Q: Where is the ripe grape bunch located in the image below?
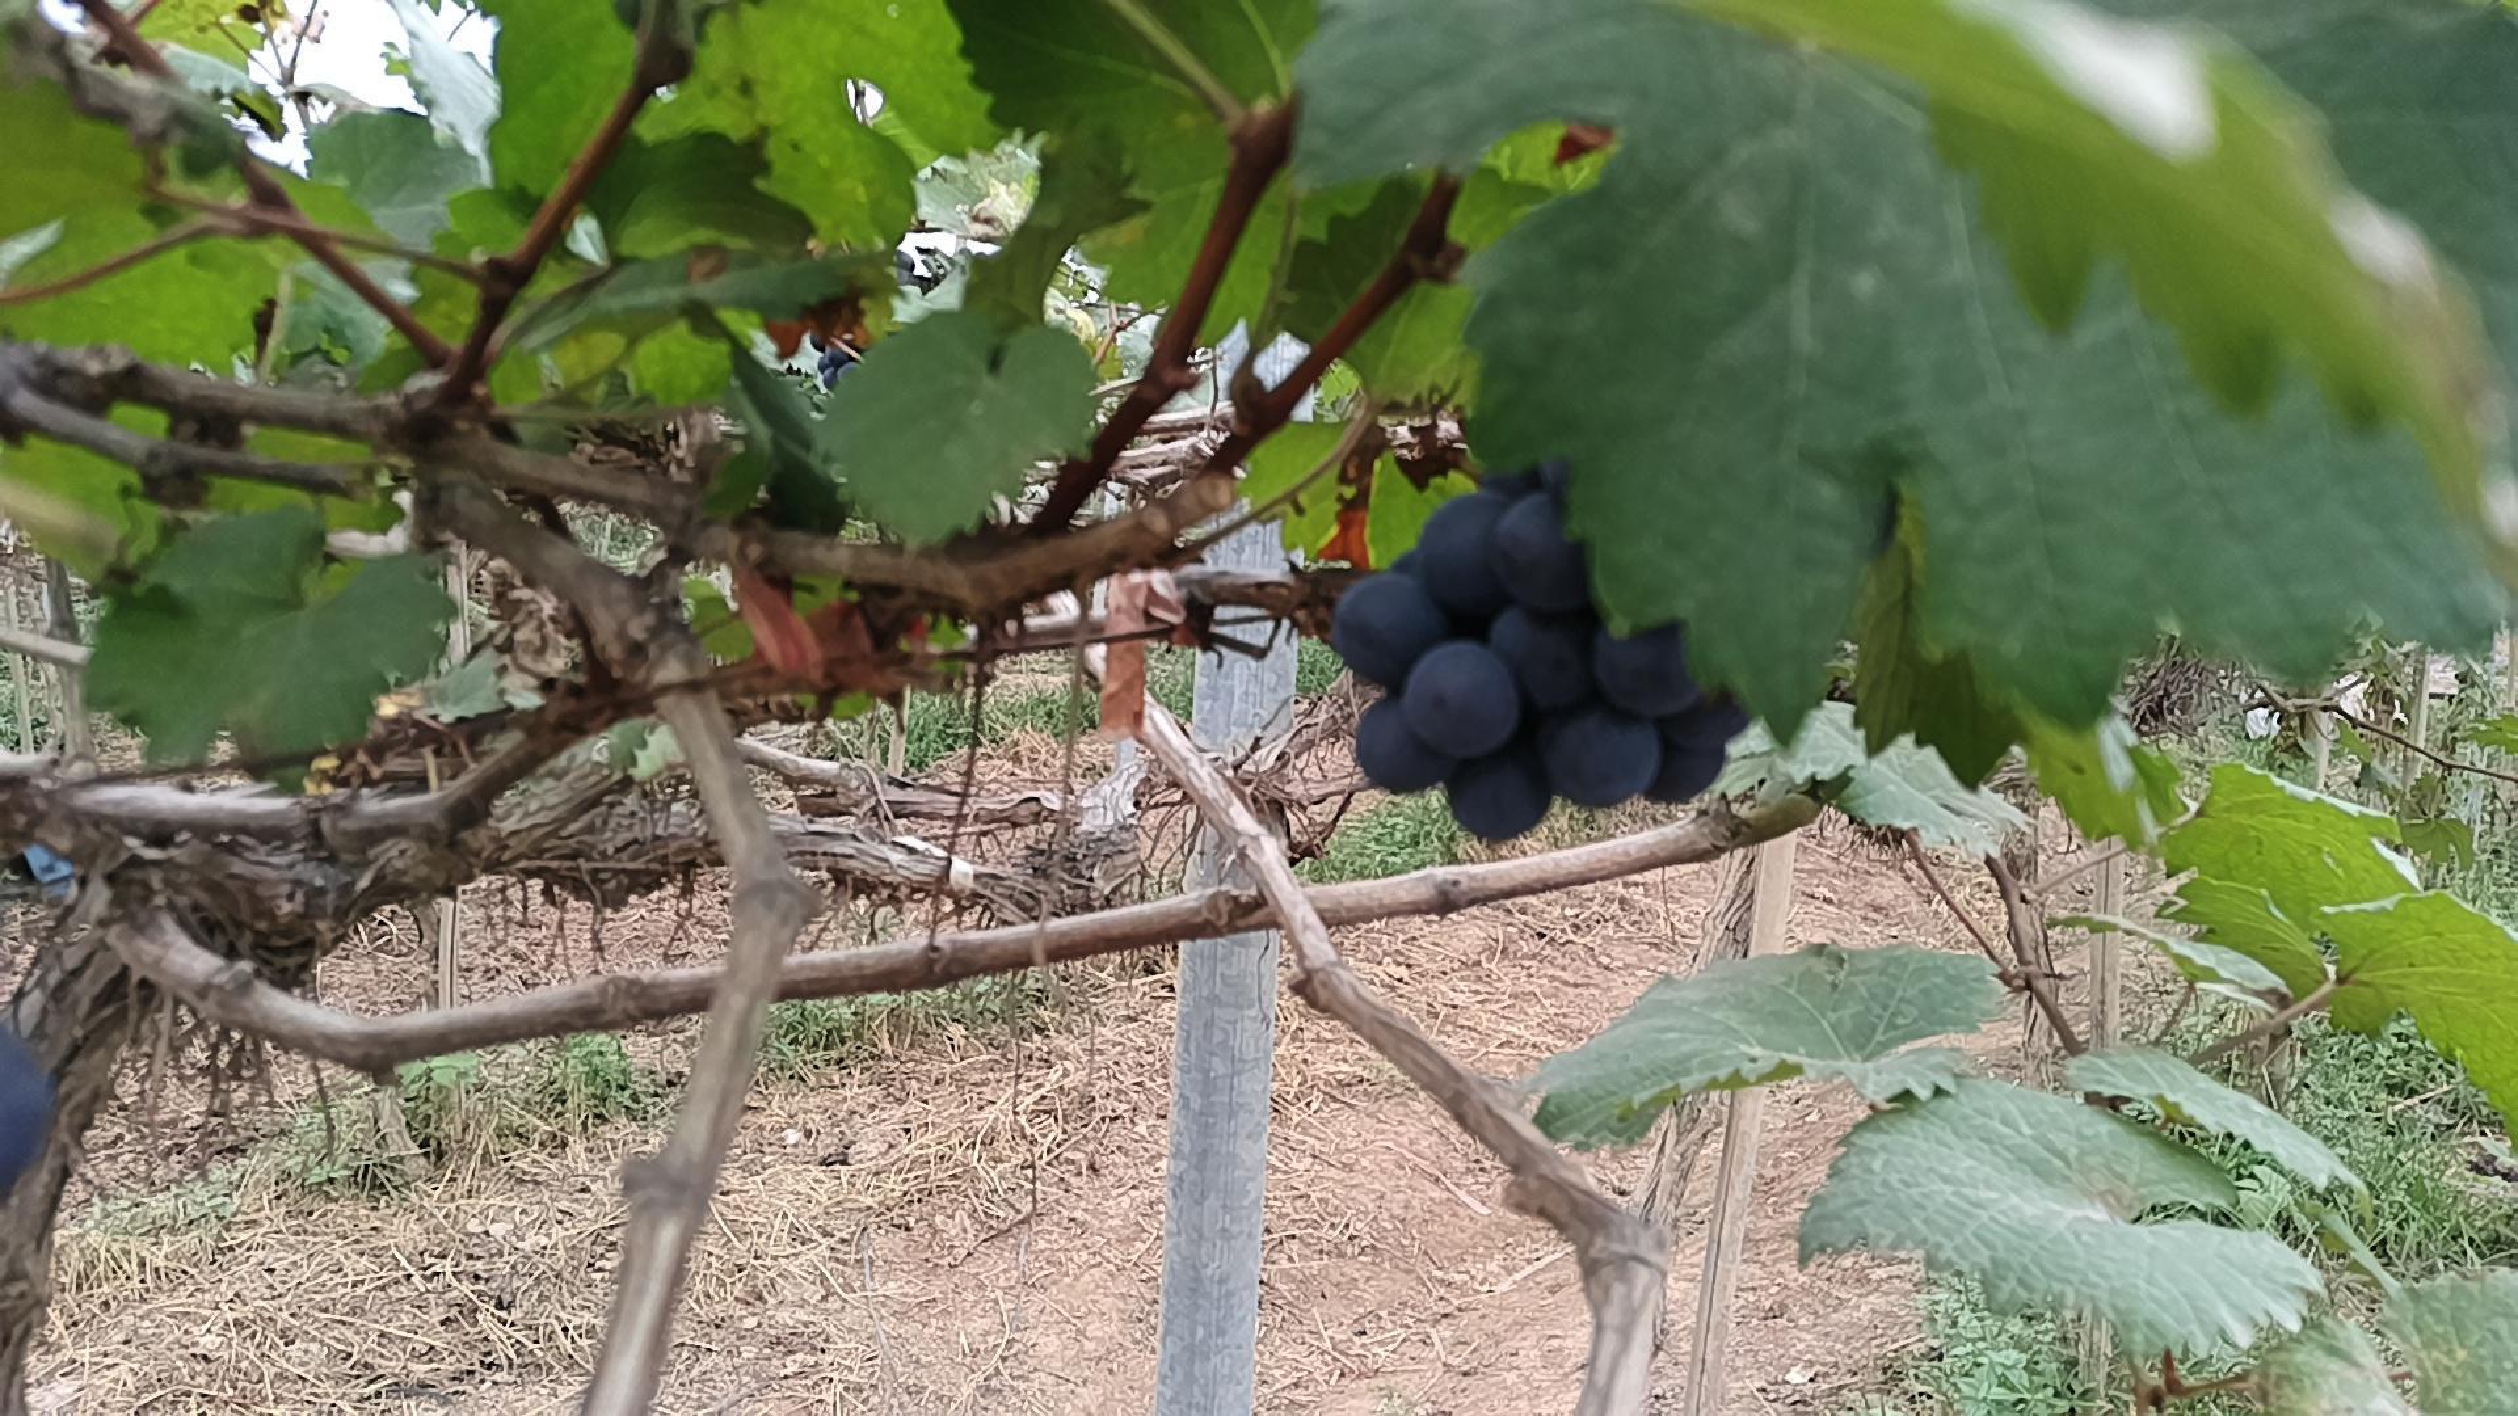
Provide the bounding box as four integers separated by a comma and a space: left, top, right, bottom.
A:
1332, 464, 1748, 839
